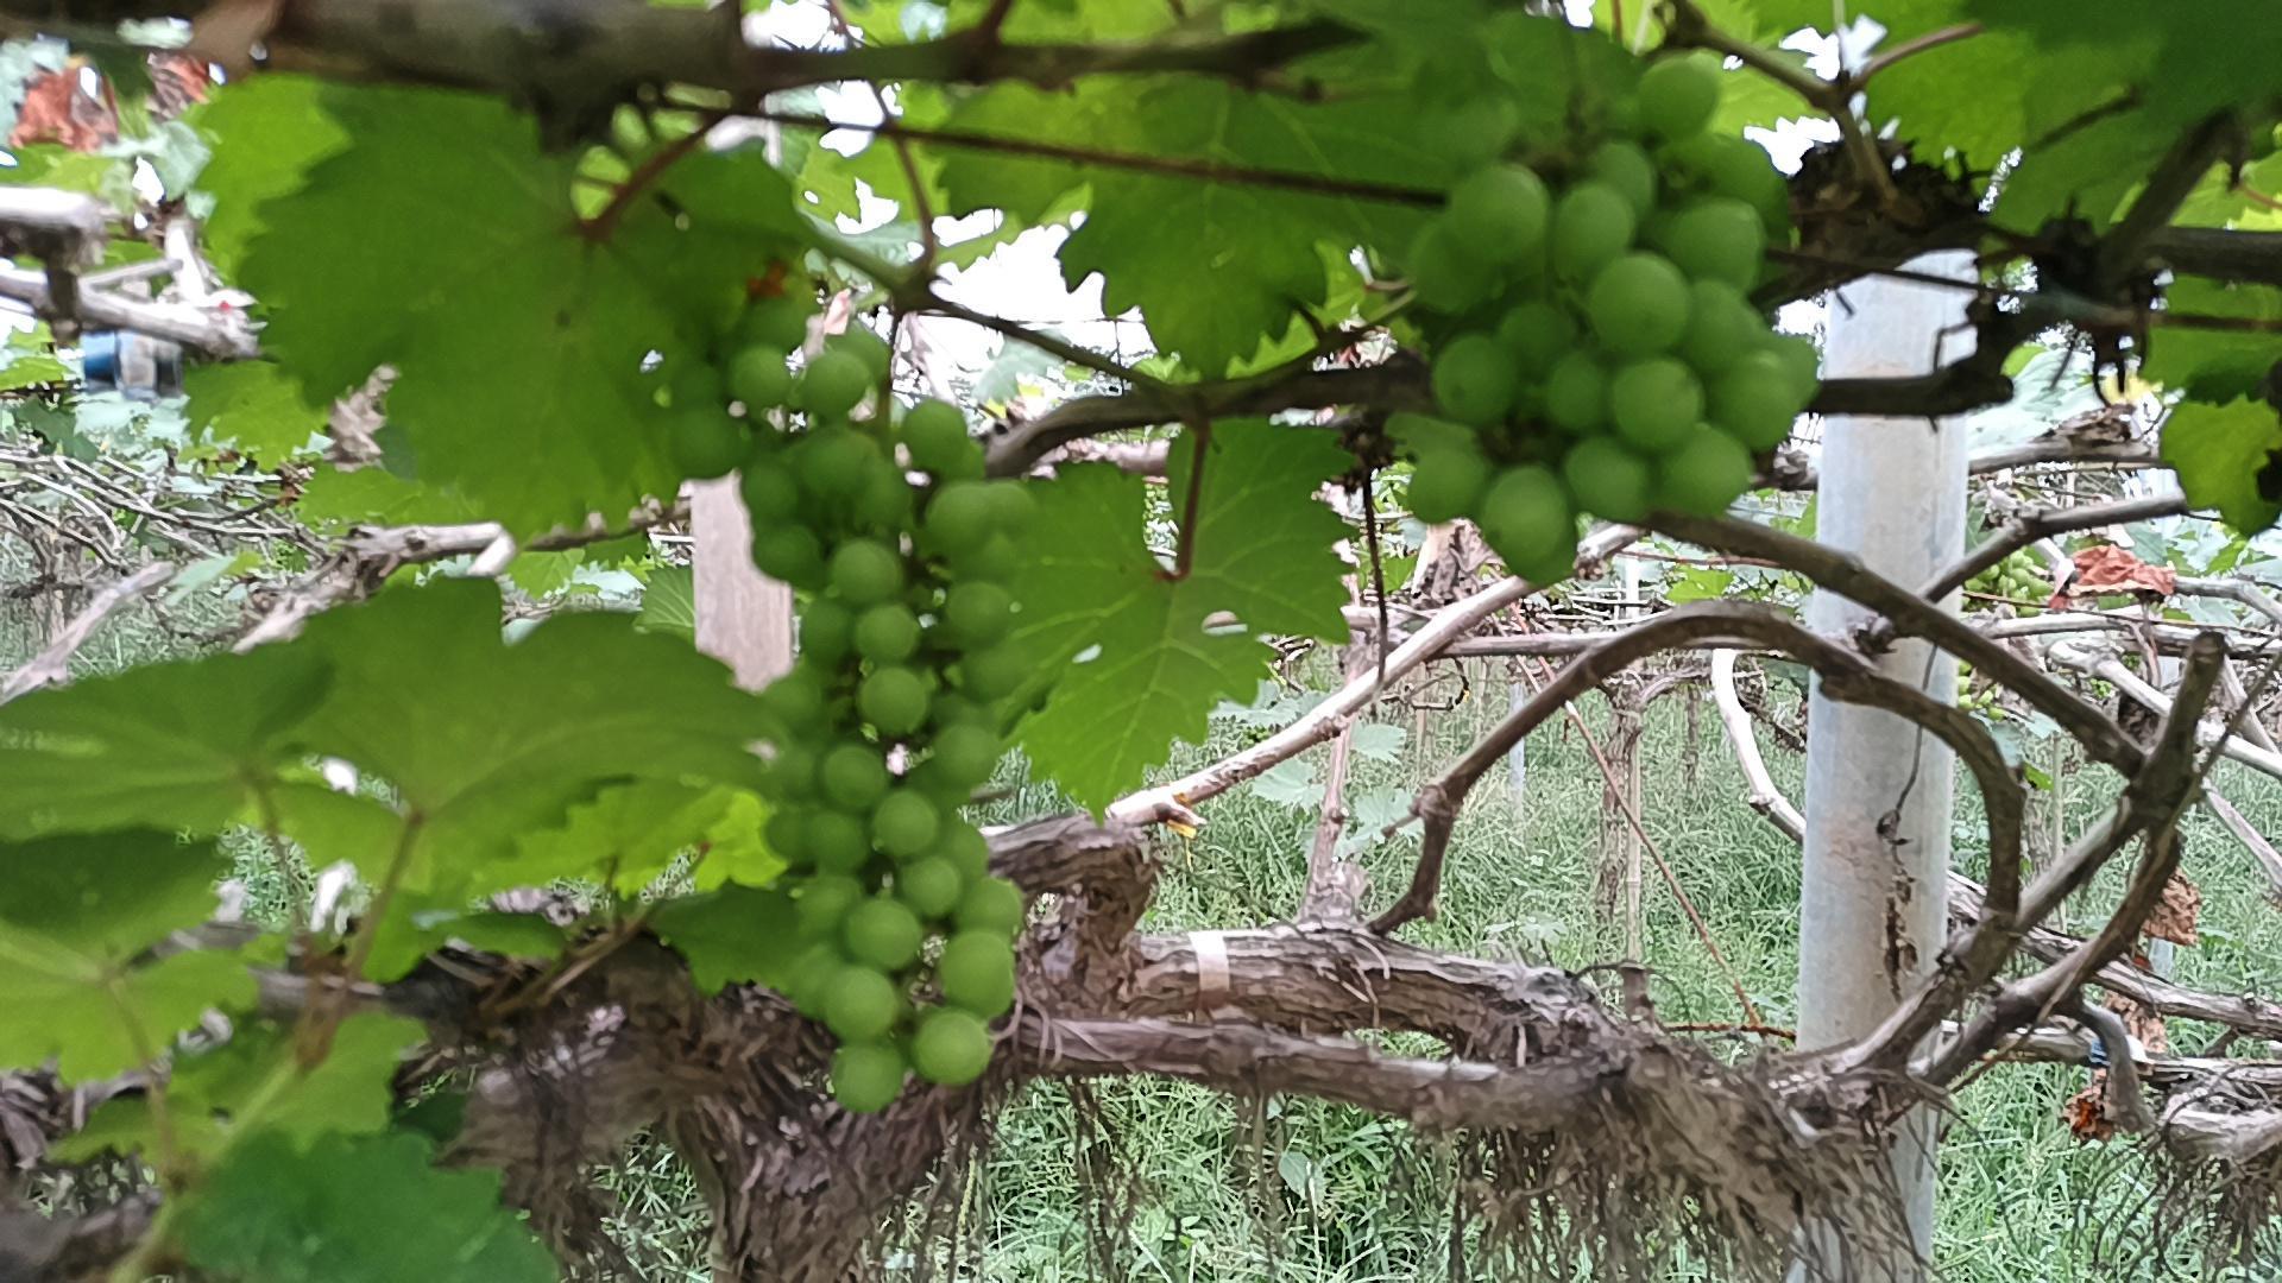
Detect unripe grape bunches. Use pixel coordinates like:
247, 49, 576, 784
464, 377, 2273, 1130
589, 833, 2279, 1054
1406, 58, 1815, 580
660, 293, 1034, 1111
1955, 555, 2055, 719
